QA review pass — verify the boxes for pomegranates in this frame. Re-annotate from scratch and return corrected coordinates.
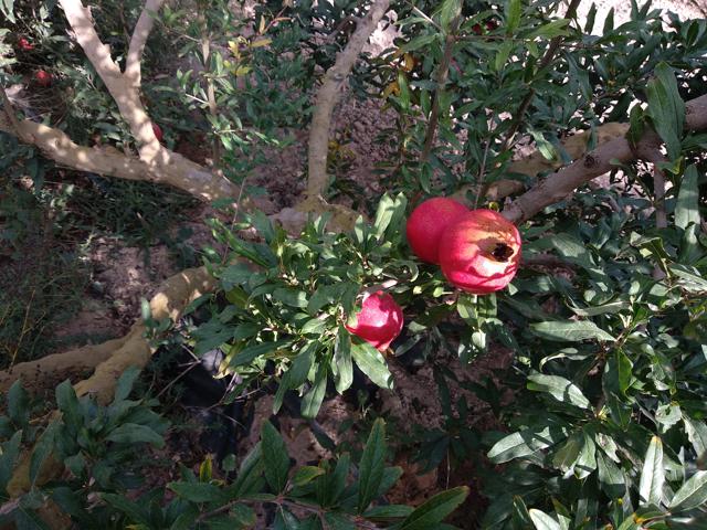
[347,290,403,351]
[405,195,469,266]
[439,208,523,295]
